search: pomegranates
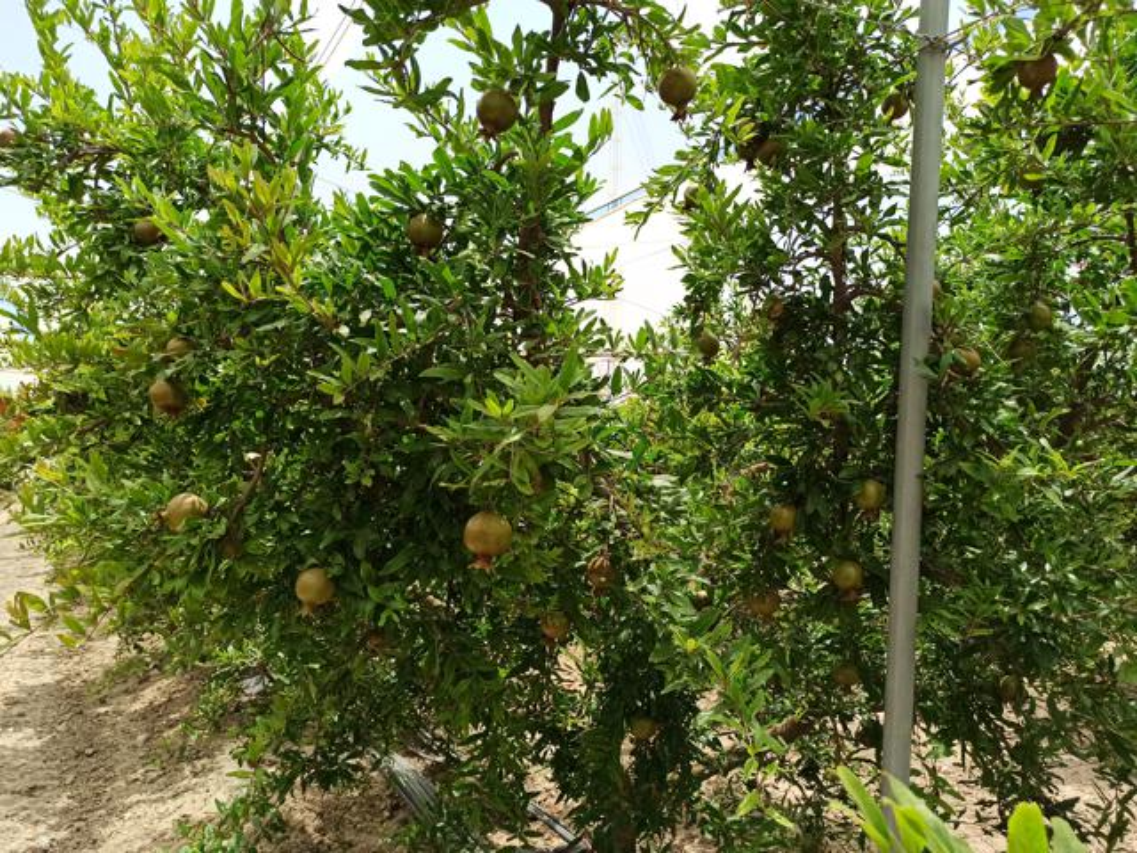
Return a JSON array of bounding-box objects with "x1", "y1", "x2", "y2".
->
[
  {"x1": 407, "y1": 211, "x2": 442, "y2": 258},
  {"x1": 149, "y1": 380, "x2": 187, "y2": 416},
  {"x1": 853, "y1": 480, "x2": 883, "y2": 522},
  {"x1": 757, "y1": 139, "x2": 783, "y2": 171},
  {"x1": 950, "y1": 348, "x2": 982, "y2": 375},
  {"x1": 540, "y1": 620, "x2": 568, "y2": 647},
  {"x1": 155, "y1": 490, "x2": 208, "y2": 530},
  {"x1": 995, "y1": 674, "x2": 1018, "y2": 702},
  {"x1": 657, "y1": 68, "x2": 698, "y2": 124},
  {"x1": 833, "y1": 668, "x2": 860, "y2": 695},
  {"x1": 0, "y1": 128, "x2": 16, "y2": 146},
  {"x1": 133, "y1": 222, "x2": 160, "y2": 243},
  {"x1": 879, "y1": 94, "x2": 910, "y2": 128},
  {"x1": 293, "y1": 567, "x2": 338, "y2": 620},
  {"x1": 831, "y1": 560, "x2": 863, "y2": 601},
  {"x1": 474, "y1": 89, "x2": 519, "y2": 142},
  {"x1": 165, "y1": 336, "x2": 194, "y2": 357},
  {"x1": 698, "y1": 336, "x2": 721, "y2": 363},
  {"x1": 1018, "y1": 53, "x2": 1057, "y2": 101},
  {"x1": 631, "y1": 720, "x2": 656, "y2": 741},
  {"x1": 766, "y1": 300, "x2": 785, "y2": 318},
  {"x1": 1023, "y1": 306, "x2": 1052, "y2": 331},
  {"x1": 586, "y1": 553, "x2": 616, "y2": 597},
  {"x1": 767, "y1": 505, "x2": 796, "y2": 546},
  {"x1": 464, "y1": 510, "x2": 513, "y2": 570},
  {"x1": 735, "y1": 139, "x2": 762, "y2": 174},
  {"x1": 753, "y1": 592, "x2": 782, "y2": 624}
]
